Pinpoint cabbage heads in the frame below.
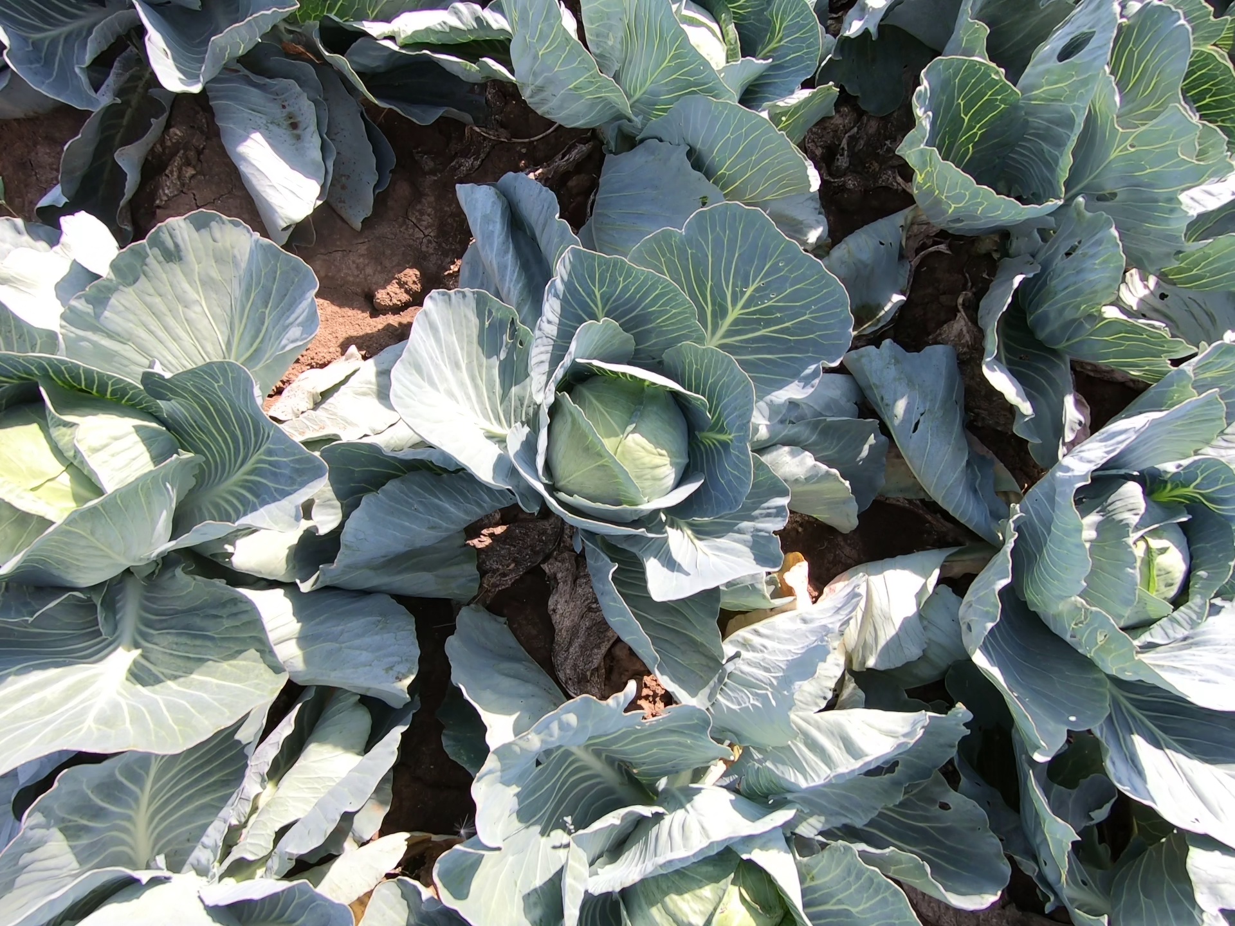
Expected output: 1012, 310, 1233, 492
637, 0, 731, 106
82, 875, 239, 924
551, 375, 688, 511
1063, 504, 1189, 621
4, 396, 169, 582
623, 796, 787, 925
